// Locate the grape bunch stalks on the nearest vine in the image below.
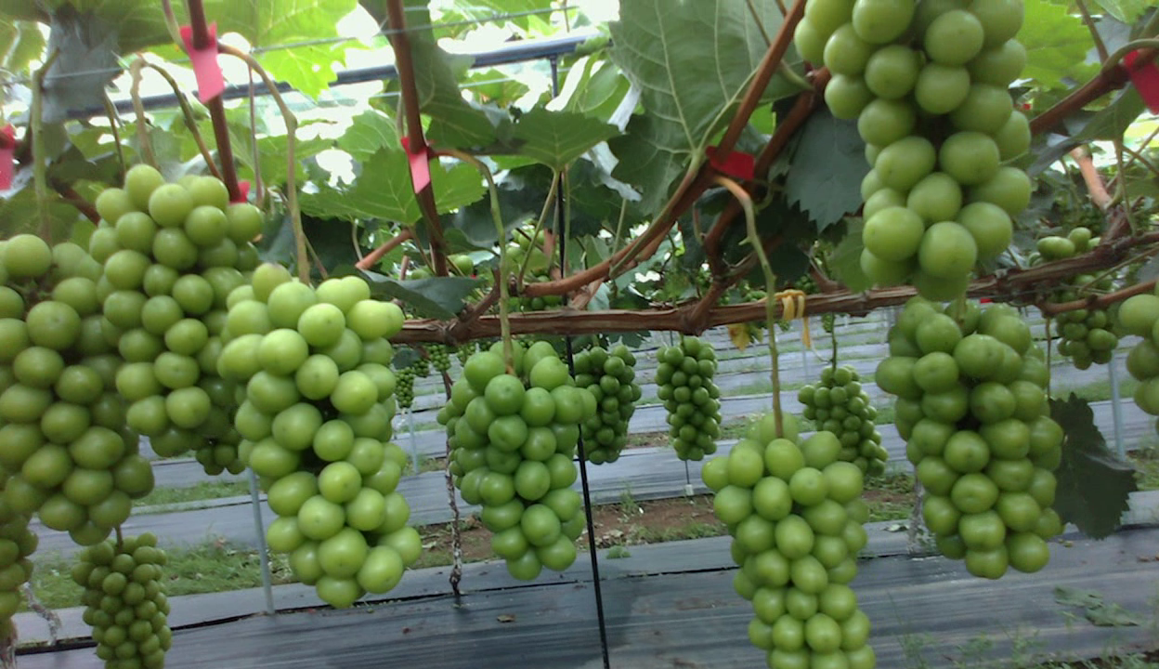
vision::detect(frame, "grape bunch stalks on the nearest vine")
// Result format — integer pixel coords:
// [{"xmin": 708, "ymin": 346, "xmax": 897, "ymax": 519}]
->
[
  {"xmin": 709, "ymin": 174, "xmax": 783, "ymax": 438},
  {"xmin": 130, "ymin": 58, "xmax": 225, "ymax": 181},
  {"xmin": 214, "ymin": 43, "xmax": 308, "ymax": 287},
  {"xmin": 30, "ymin": 49, "xmax": 60, "ymax": 240},
  {"xmin": 427, "ymin": 148, "xmax": 514, "ymax": 374}
]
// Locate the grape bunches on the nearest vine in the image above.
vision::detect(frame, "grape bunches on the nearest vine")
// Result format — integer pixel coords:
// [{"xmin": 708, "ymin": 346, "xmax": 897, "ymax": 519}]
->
[
  {"xmin": 451, "ymin": 342, "xmax": 597, "ymax": 583},
  {"xmin": 795, "ymin": 2, "xmax": 1031, "ymax": 300},
  {"xmin": 703, "ymin": 412, "xmax": 875, "ymax": 668},
  {"xmin": 0, "ymin": 235, "xmax": 152, "ymax": 545},
  {"xmin": 218, "ymin": 261, "xmax": 422, "ymax": 611},
  {"xmin": 91, "ymin": 164, "xmax": 267, "ymax": 458},
  {"xmin": 879, "ymin": 293, "xmax": 1061, "ymax": 580}
]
